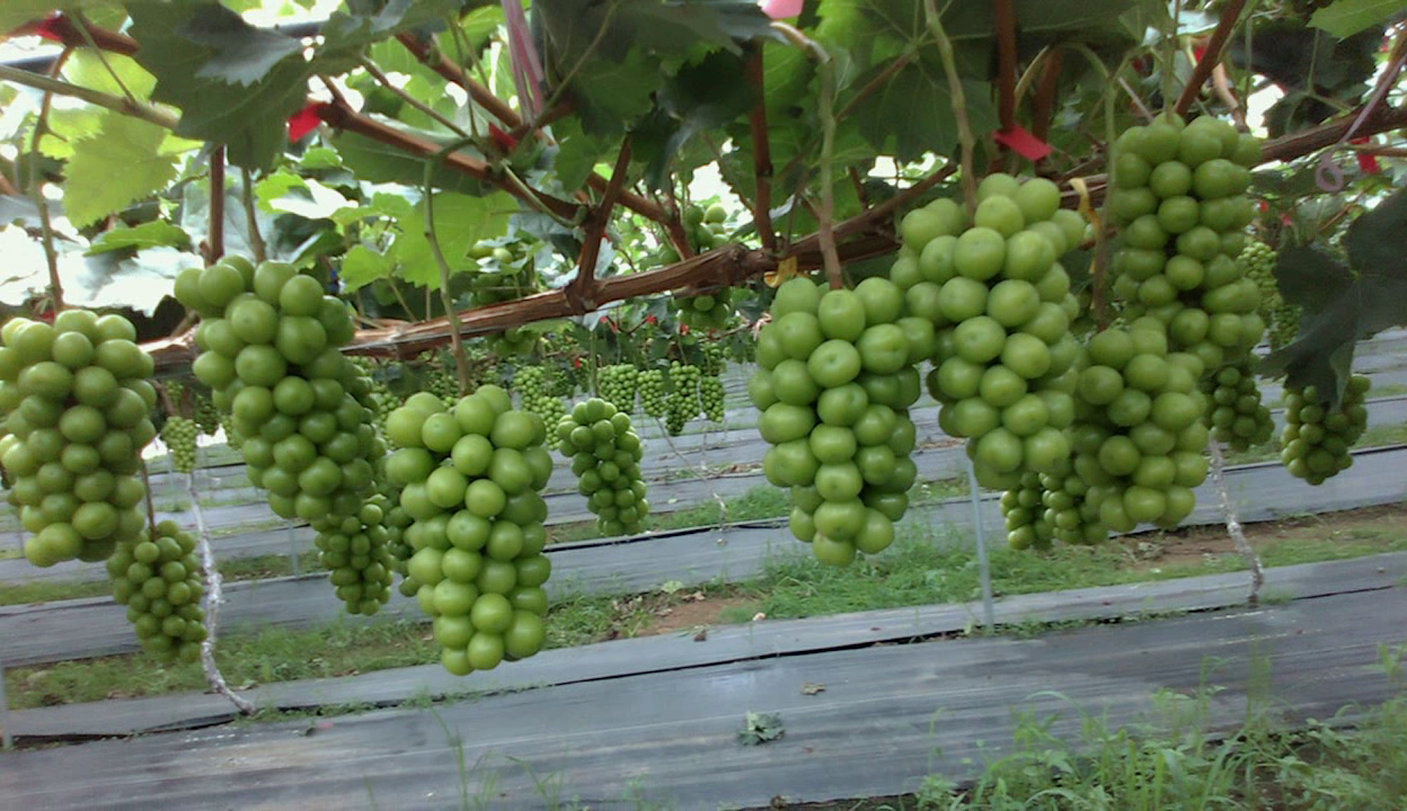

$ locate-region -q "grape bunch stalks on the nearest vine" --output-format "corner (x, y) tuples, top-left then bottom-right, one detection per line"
(241, 167), (266, 266)
(1014, 38), (1117, 332)
(1161, 6), (1175, 123)
(30, 42), (77, 314)
(767, 21), (842, 291)
(424, 124), (526, 398)
(922, 2), (979, 225)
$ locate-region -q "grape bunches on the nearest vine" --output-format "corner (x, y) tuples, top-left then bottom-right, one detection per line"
(1061, 317), (1212, 532)
(750, 278), (939, 569)
(1112, 113), (1265, 380)
(384, 385), (552, 675)
(0, 312), (158, 568)
(892, 173), (1083, 488)
(172, 255), (377, 519)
